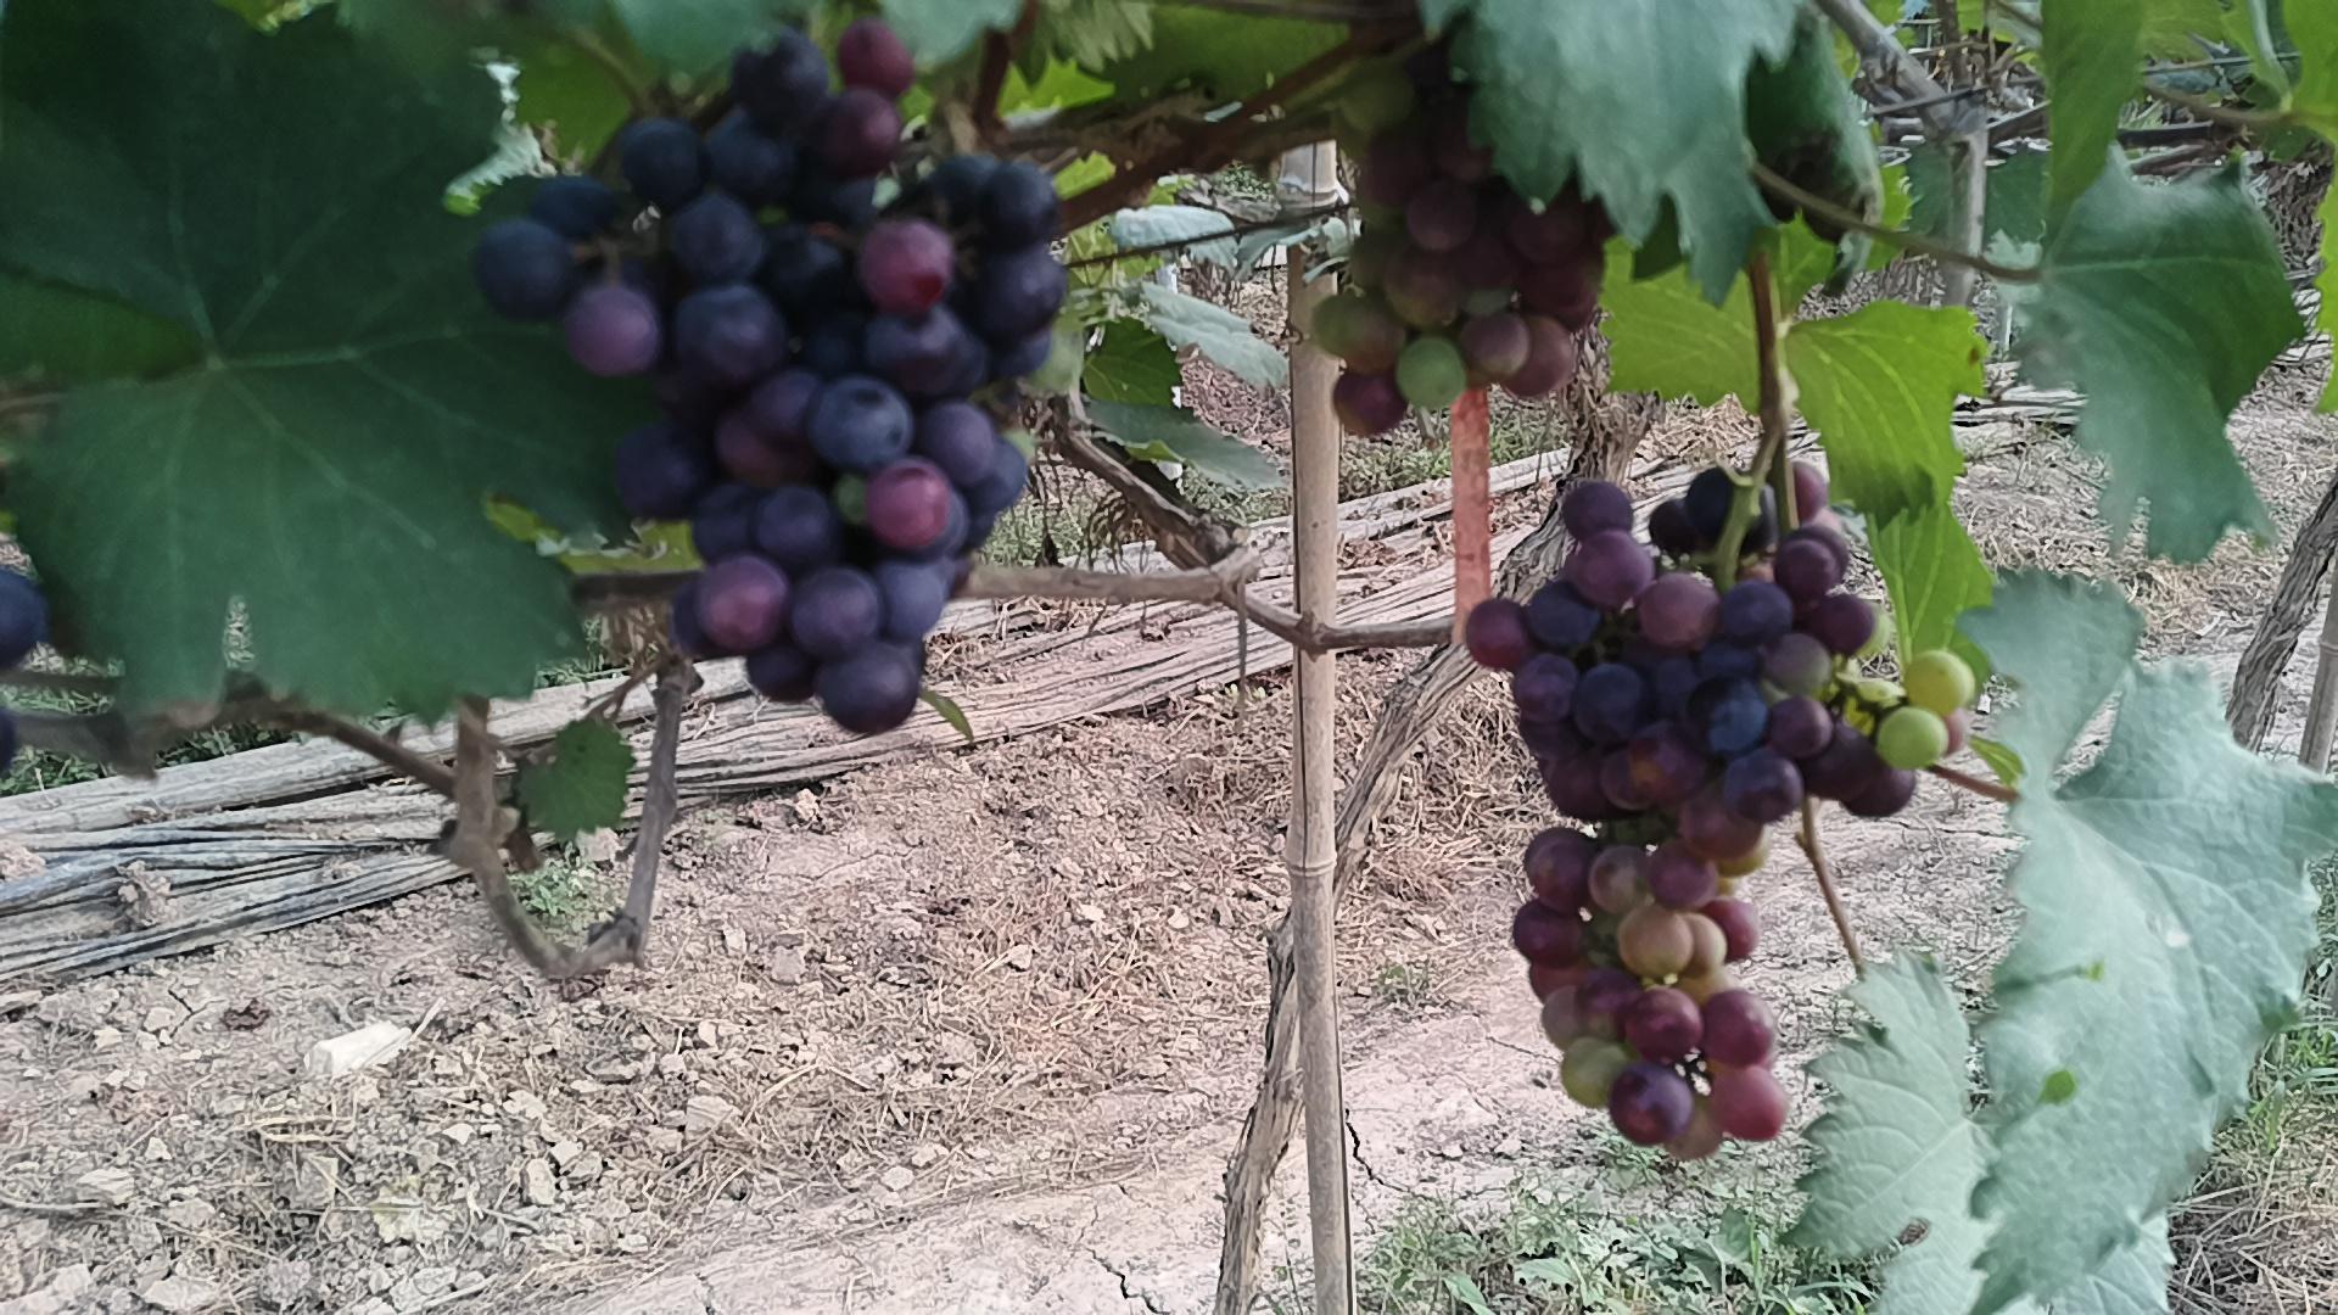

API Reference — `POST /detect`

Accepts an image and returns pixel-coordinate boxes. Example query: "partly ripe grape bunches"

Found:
[474,18,1064,734]
[1309,0,1610,436]
[1462,461,1974,1160]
